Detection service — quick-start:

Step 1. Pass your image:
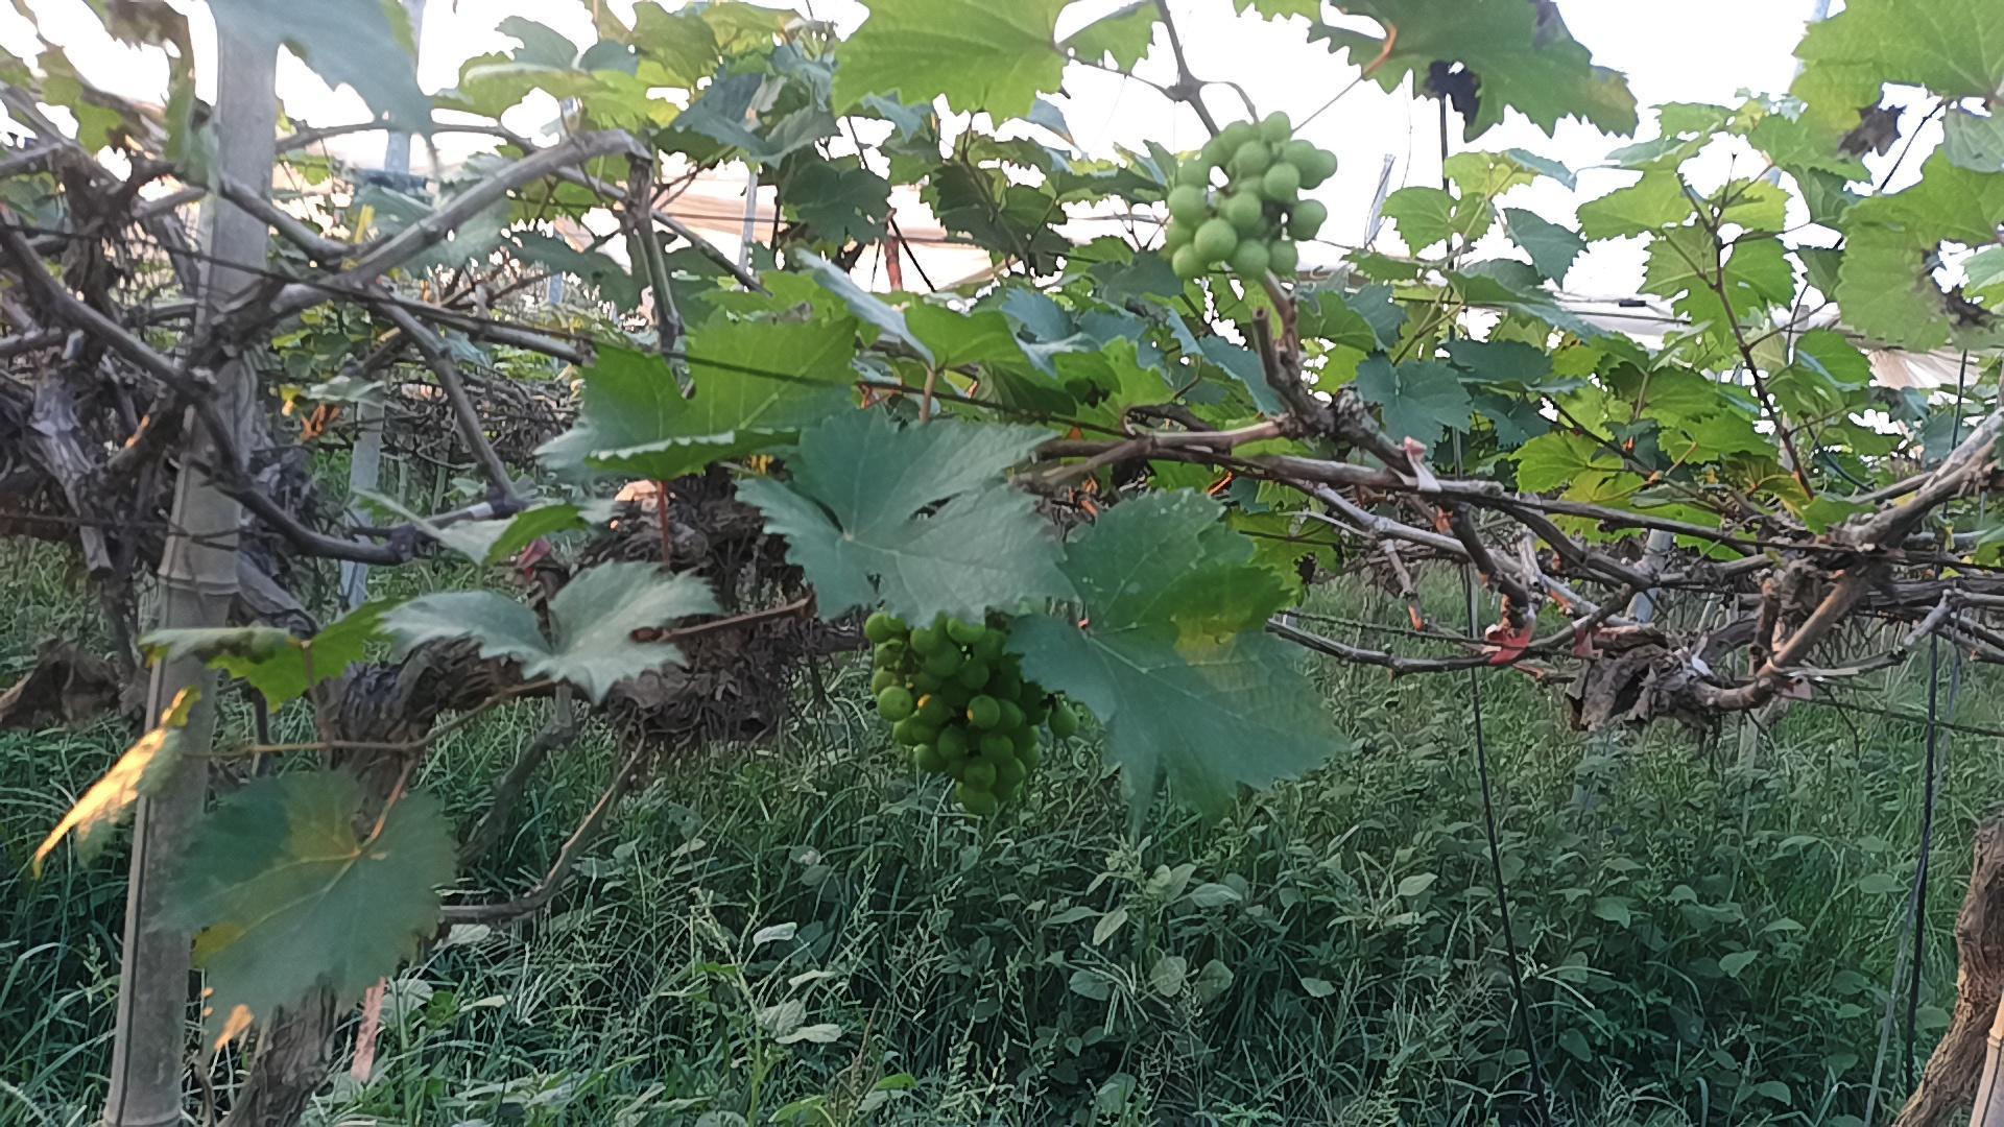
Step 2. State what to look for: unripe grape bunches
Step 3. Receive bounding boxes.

[865,613,1078,815]
[1160,114,1334,279]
